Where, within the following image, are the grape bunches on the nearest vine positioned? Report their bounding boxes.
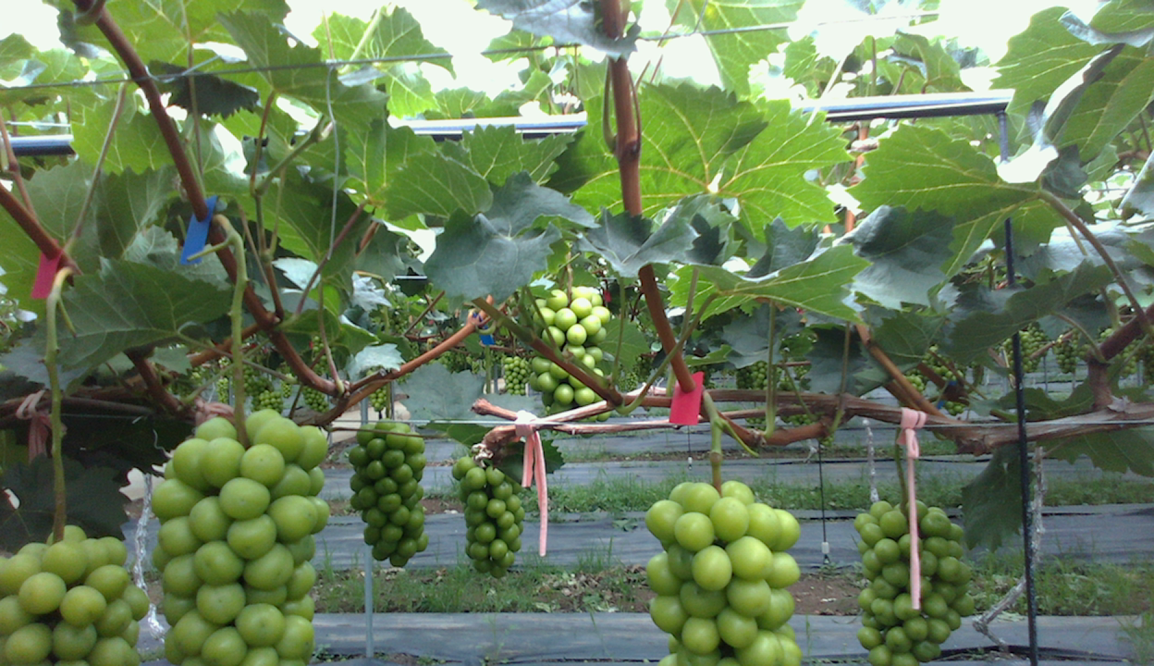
[645,479,804,665]
[151,410,330,665]
[0,525,150,664]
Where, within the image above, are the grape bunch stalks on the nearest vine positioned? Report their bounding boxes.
[190,216,246,446]
[41,267,77,541]
[703,392,722,488]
